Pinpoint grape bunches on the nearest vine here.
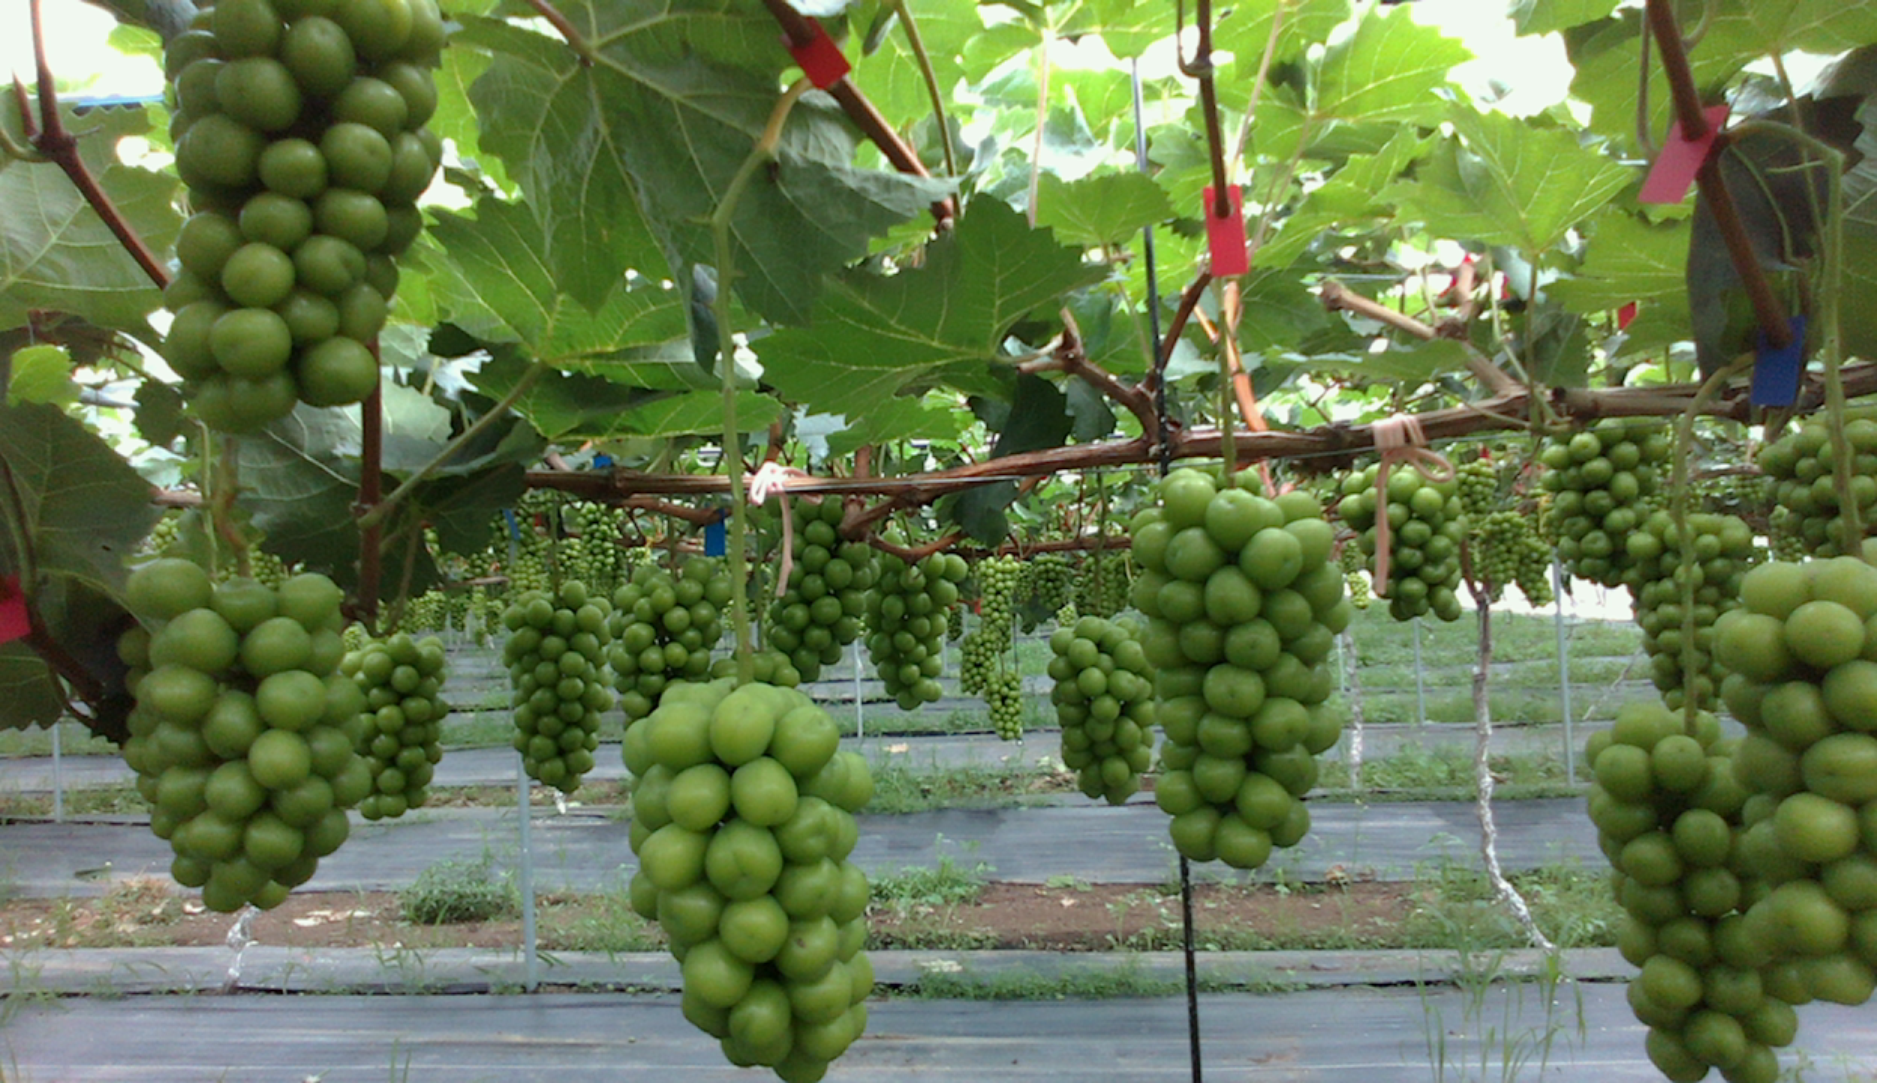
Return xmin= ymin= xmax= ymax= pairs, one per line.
xmin=128 ymin=560 xmax=371 ymax=893
xmin=1715 ymin=558 xmax=1875 ymax=1008
xmin=1579 ymin=702 xmax=1799 ymax=1081
xmin=620 ymin=675 xmax=875 ymax=1081
xmin=159 ymin=0 xmax=444 ymax=433
xmin=1130 ymin=468 xmax=1351 ymax=869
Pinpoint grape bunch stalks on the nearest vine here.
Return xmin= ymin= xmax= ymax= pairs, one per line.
xmin=211 ymin=435 xmax=251 ymax=576
xmin=1215 ymin=278 xmax=1236 ymax=487
xmin=1719 ymin=117 xmax=1862 ymax=561
xmin=711 ymin=77 xmax=814 ymax=683
xmin=1671 ymin=349 xmax=1760 ymax=739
